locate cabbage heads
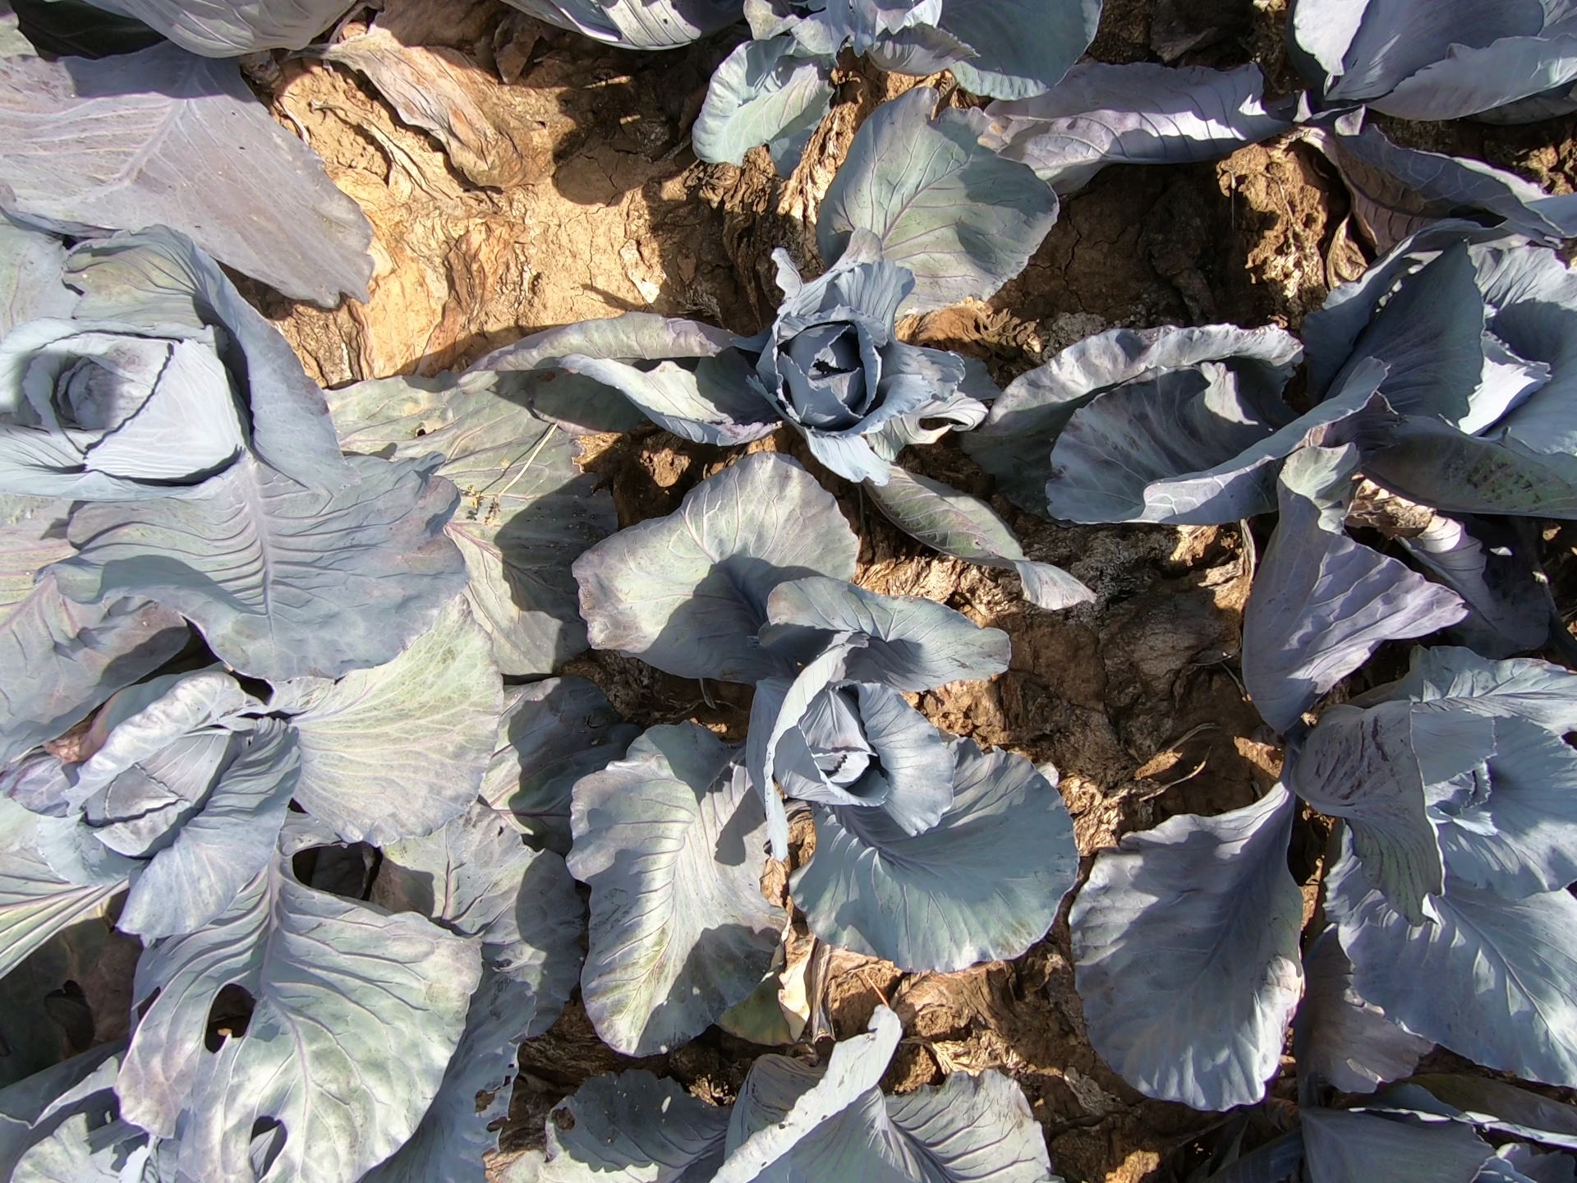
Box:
[81,724,267,856]
[1338,322,1524,470]
[1364,730,1484,818]
[63,338,237,479]
[780,685,878,795]
[787,321,868,417]
[136,1110,260,1181]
